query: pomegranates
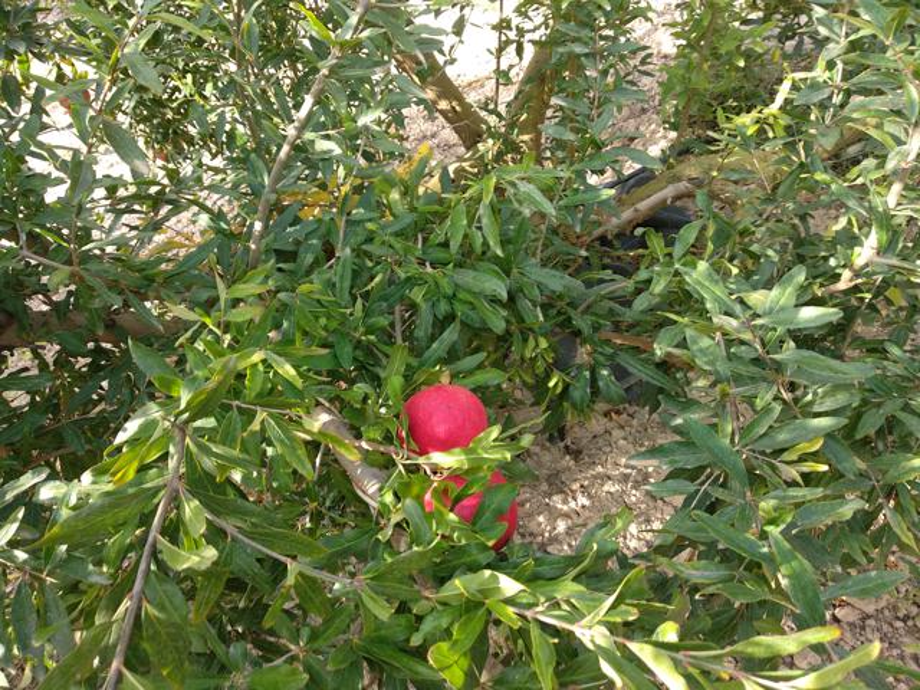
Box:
[397,385,489,457]
[425,471,519,552]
